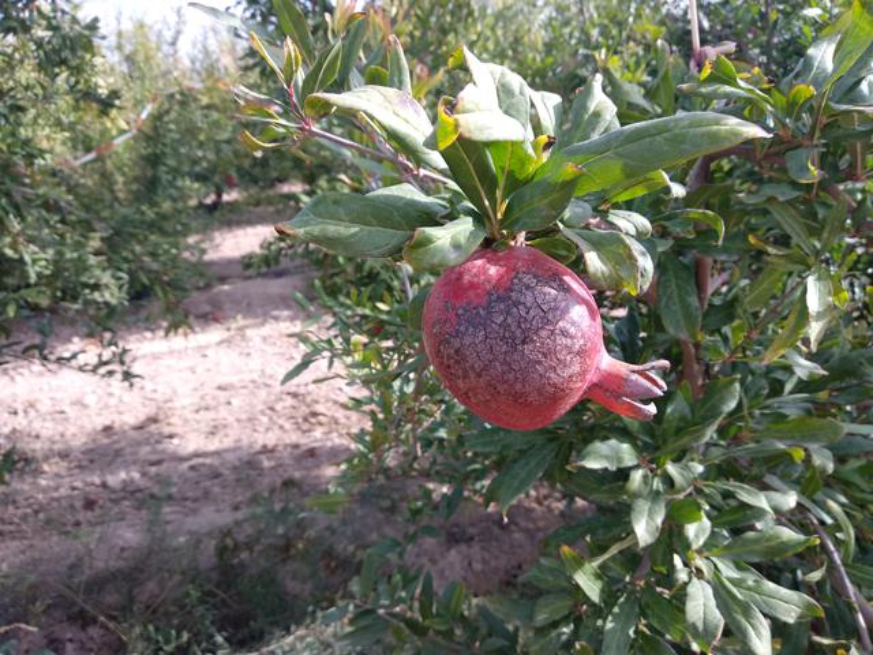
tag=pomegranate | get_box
[420,246,671,430]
